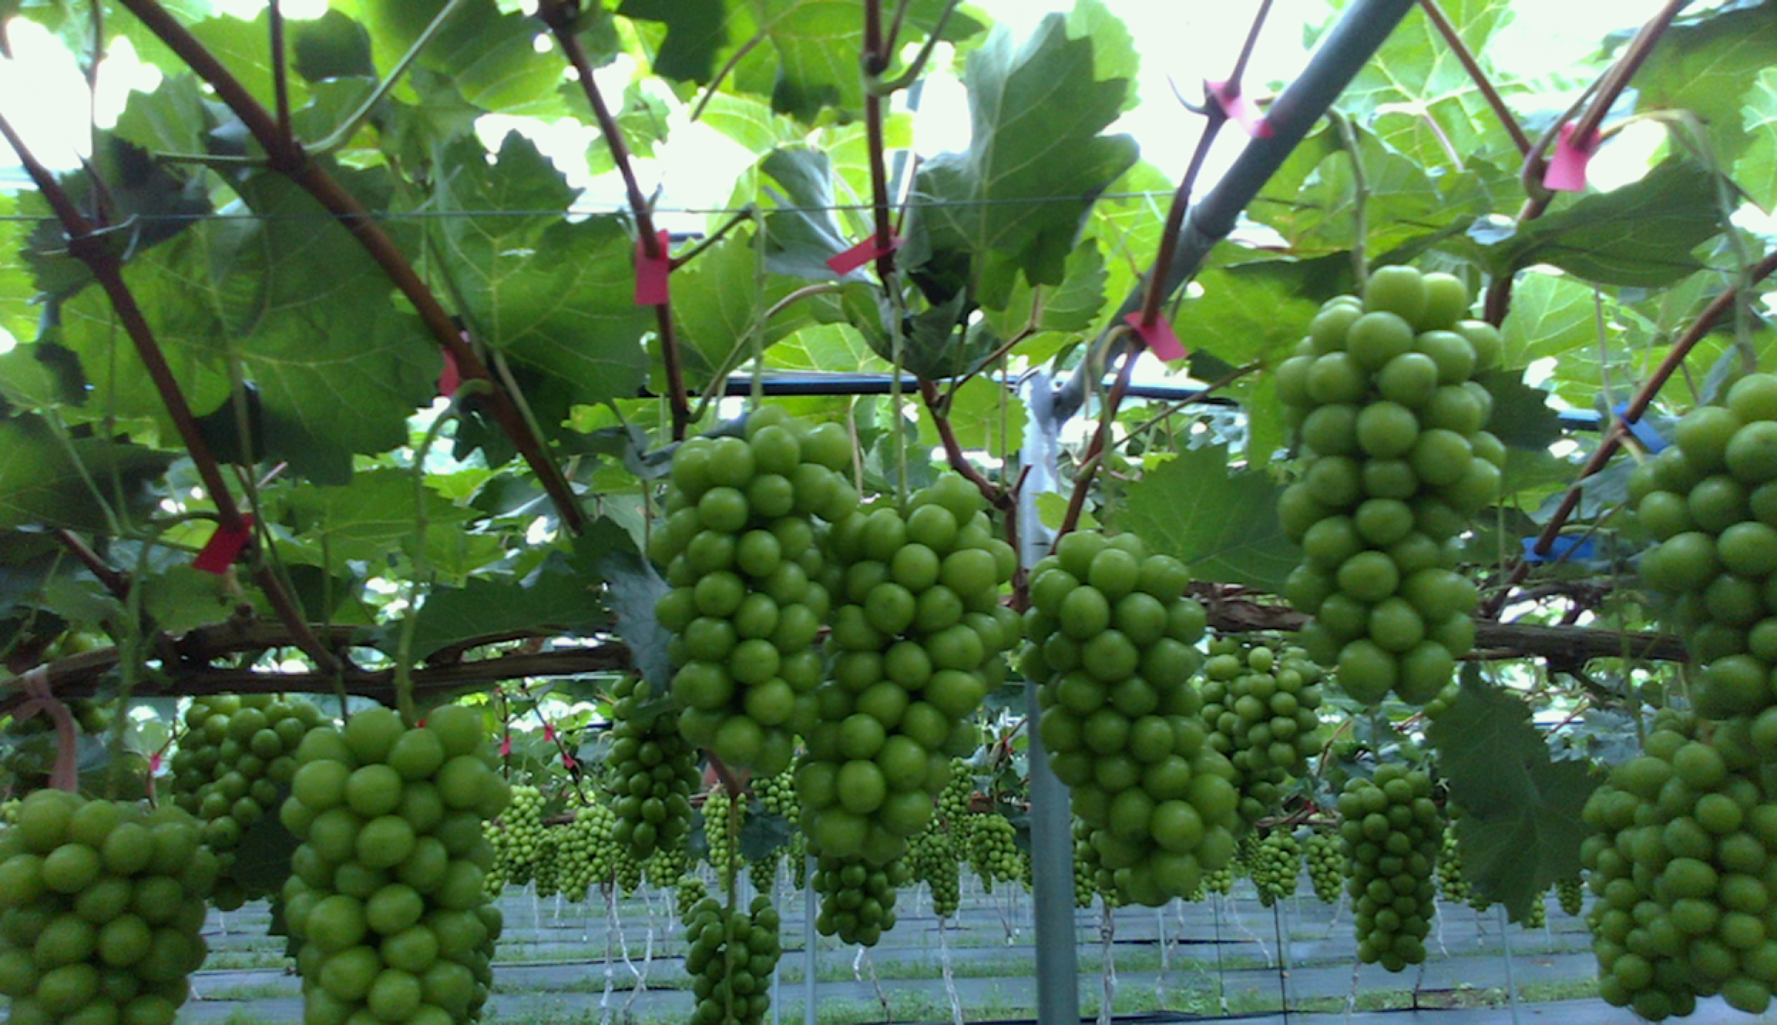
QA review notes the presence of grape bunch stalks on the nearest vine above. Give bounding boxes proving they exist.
[1092,325,1126,530]
[887,273,906,507]
[1686,655,1707,737]
[396,379,491,729]
[671,202,767,406]
[1608,107,1758,370]
[1327,107,1371,279]
[107,511,216,799]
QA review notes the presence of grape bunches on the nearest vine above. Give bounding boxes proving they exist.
[1018,531,1239,908]
[282,702,510,1024]
[649,403,857,779]
[1623,370,1776,762]
[1606,717,1776,1012]
[0,790,215,1024]
[1276,266,1508,708]
[789,470,1021,866]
